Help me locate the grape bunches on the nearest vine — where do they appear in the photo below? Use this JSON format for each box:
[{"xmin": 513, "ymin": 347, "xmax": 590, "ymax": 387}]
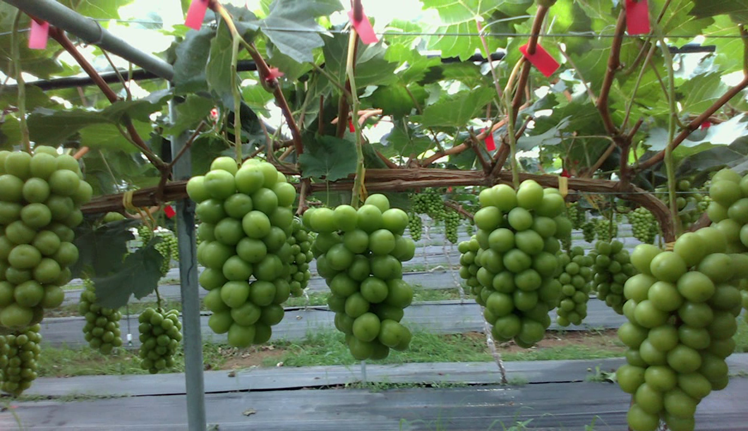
[
  {"xmin": 617, "ymin": 226, "xmax": 740, "ymax": 430},
  {"xmin": 473, "ymin": 180, "xmax": 571, "ymax": 348},
  {"xmin": 707, "ymin": 170, "xmax": 747, "ymax": 310},
  {"xmin": 186, "ymin": 157, "xmax": 294, "ymax": 348},
  {"xmin": 301, "ymin": 195, "xmax": 415, "ymax": 361},
  {"xmin": 1, "ymin": 146, "xmax": 92, "ymax": 332}
]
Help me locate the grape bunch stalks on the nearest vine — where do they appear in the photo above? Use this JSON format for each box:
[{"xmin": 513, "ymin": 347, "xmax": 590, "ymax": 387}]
[
  {"xmin": 346, "ymin": 29, "xmax": 363, "ymax": 205},
  {"xmin": 11, "ymin": 8, "xmax": 32, "ymax": 153},
  {"xmin": 505, "ymin": 54, "xmax": 525, "ymax": 192},
  {"xmin": 210, "ymin": 4, "xmax": 243, "ymax": 165},
  {"xmin": 650, "ymin": 13, "xmax": 681, "ymax": 239}
]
